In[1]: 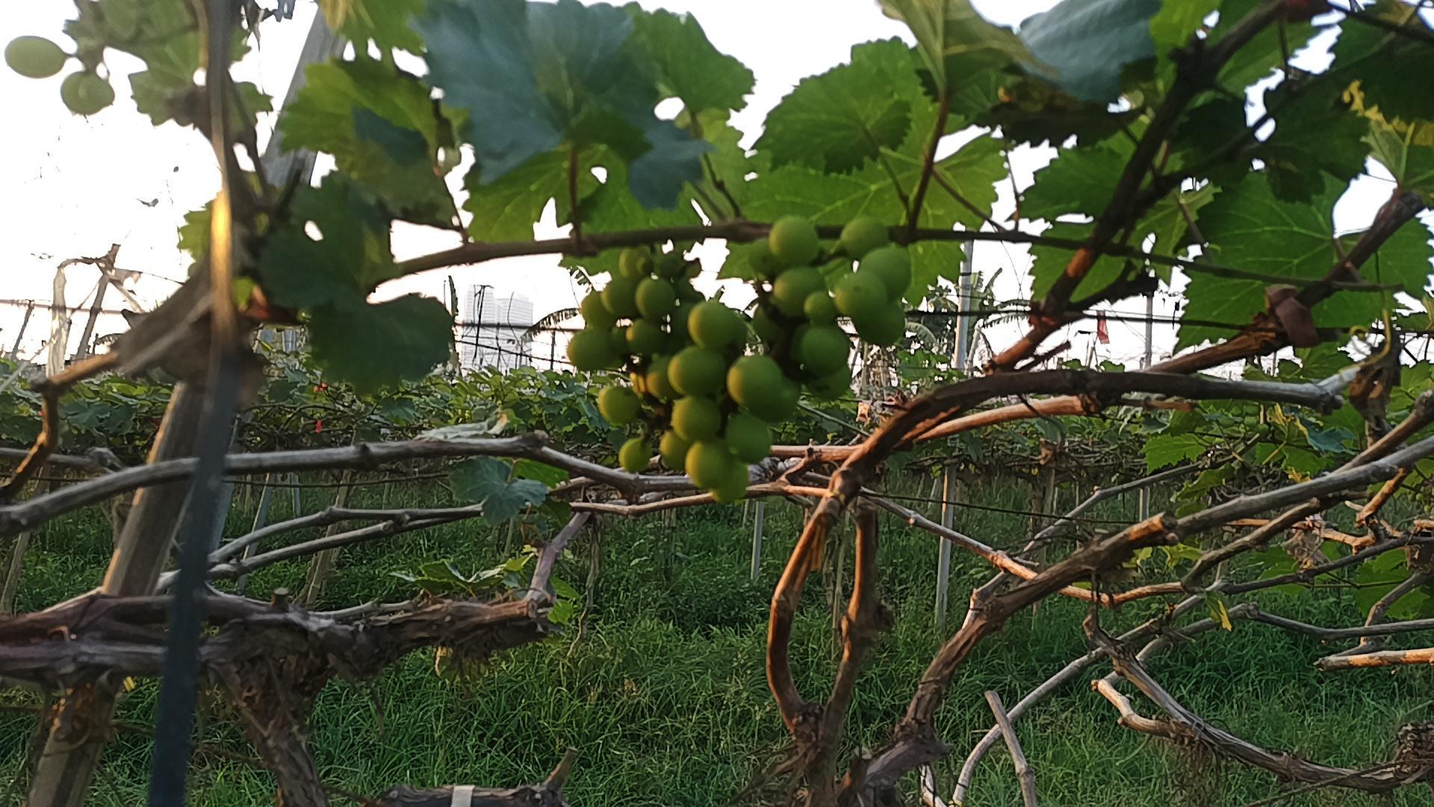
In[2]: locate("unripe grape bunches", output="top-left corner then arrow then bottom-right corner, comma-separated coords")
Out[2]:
4,0 -> 114,118
749,216 -> 910,397
567,247 -> 795,501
